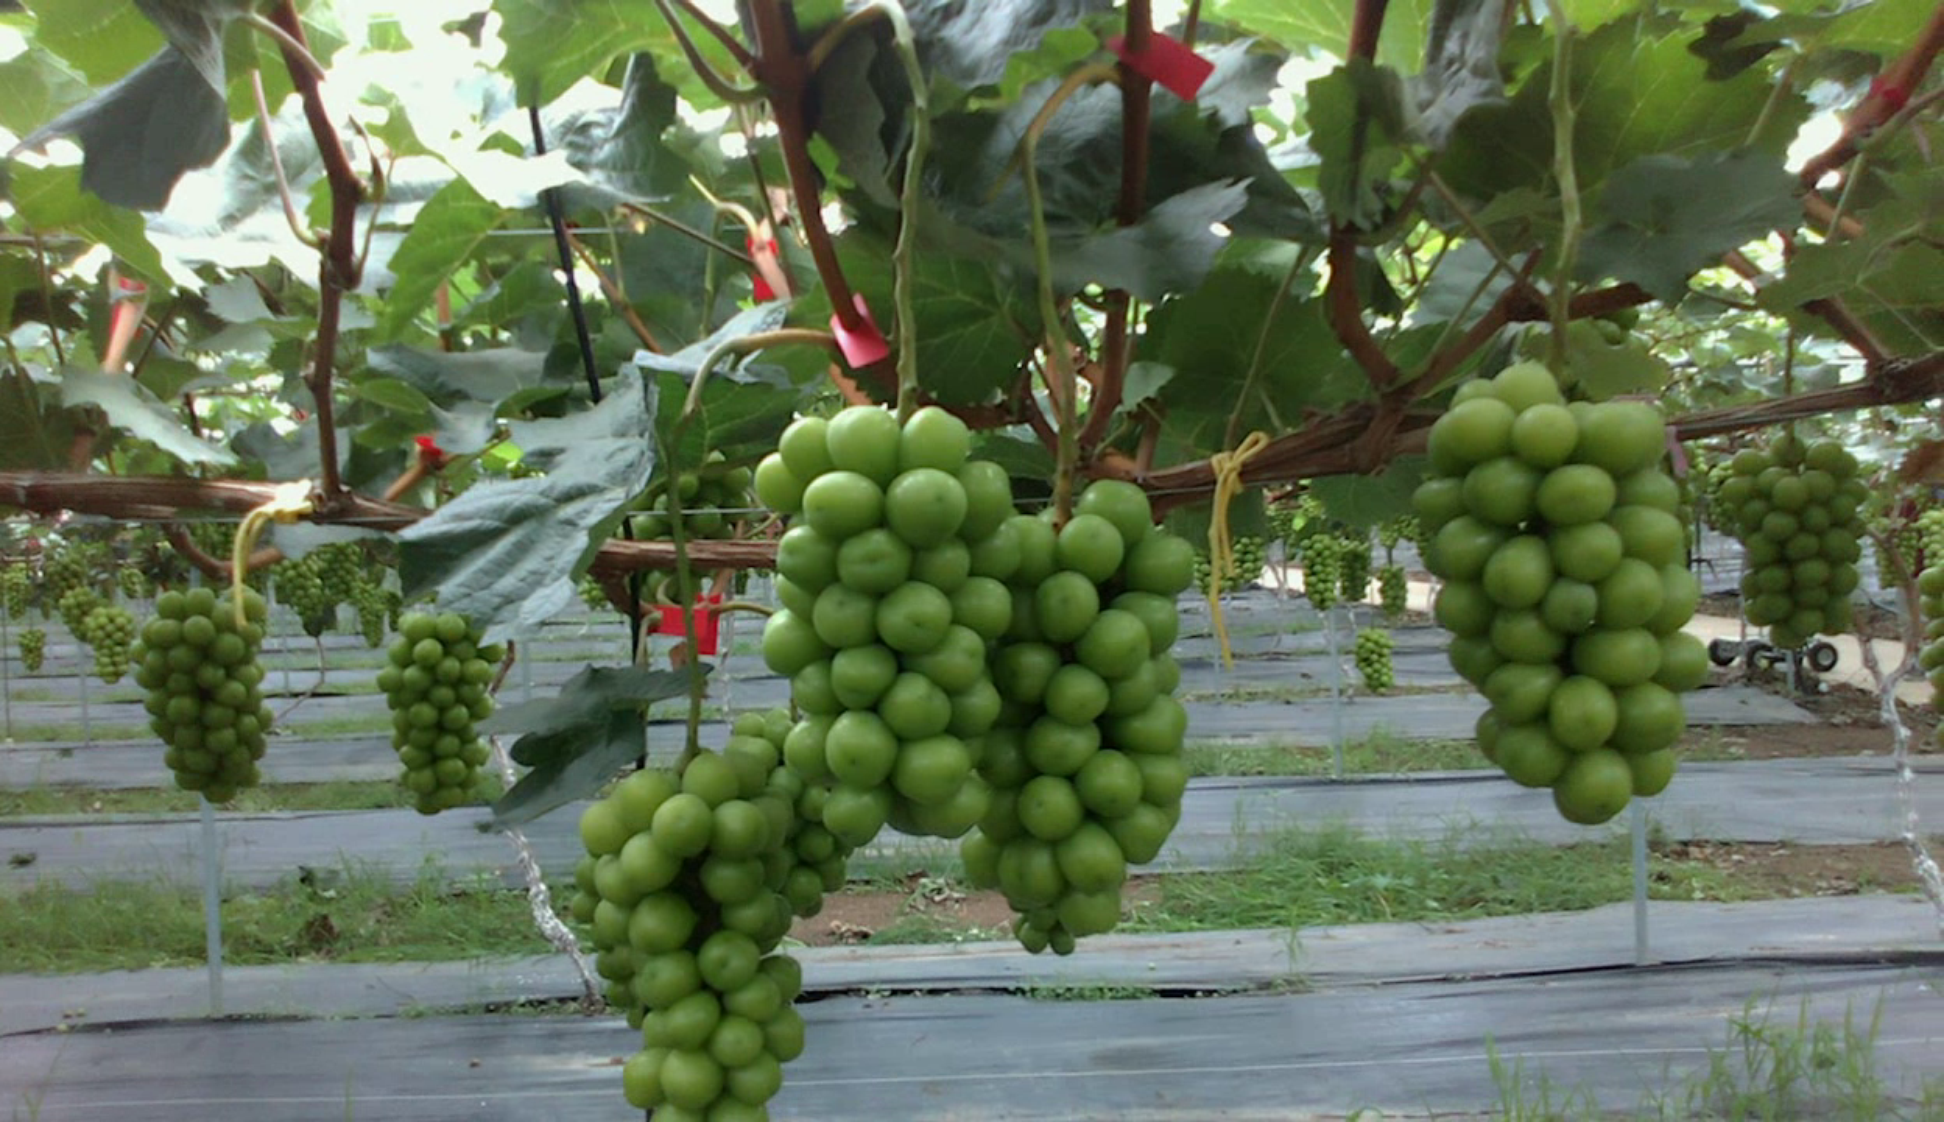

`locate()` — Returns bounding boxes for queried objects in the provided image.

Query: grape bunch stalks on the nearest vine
[1544,0,1579,382]
[668,330,838,765]
[805,3,927,430]
[1022,65,1126,530]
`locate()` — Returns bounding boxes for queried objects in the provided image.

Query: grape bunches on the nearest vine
[579,748,804,1120]
[1413,366,1709,824]
[754,407,1022,848]
[960,480,1192,938]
